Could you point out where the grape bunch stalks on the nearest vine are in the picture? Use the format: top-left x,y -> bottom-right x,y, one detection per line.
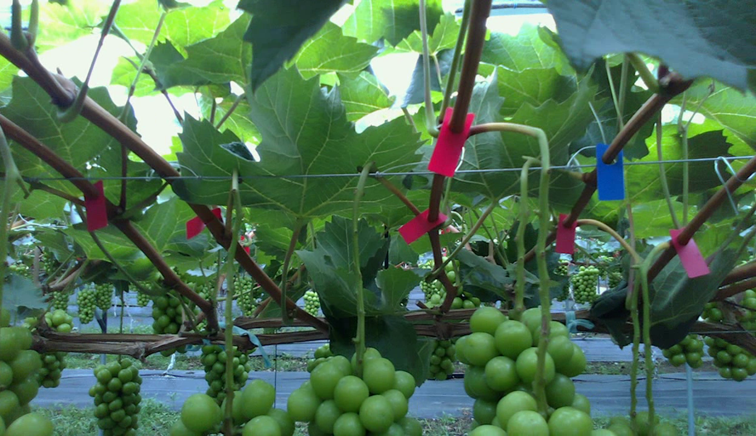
513,157 -> 540,320
353,162 -> 372,379
224,171 -> 242,435
469,122 -> 551,418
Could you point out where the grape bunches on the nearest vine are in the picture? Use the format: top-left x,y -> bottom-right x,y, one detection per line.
454,307 -> 592,430
170,380 -> 295,435
467,391 -> 618,435
287,347 -> 423,435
